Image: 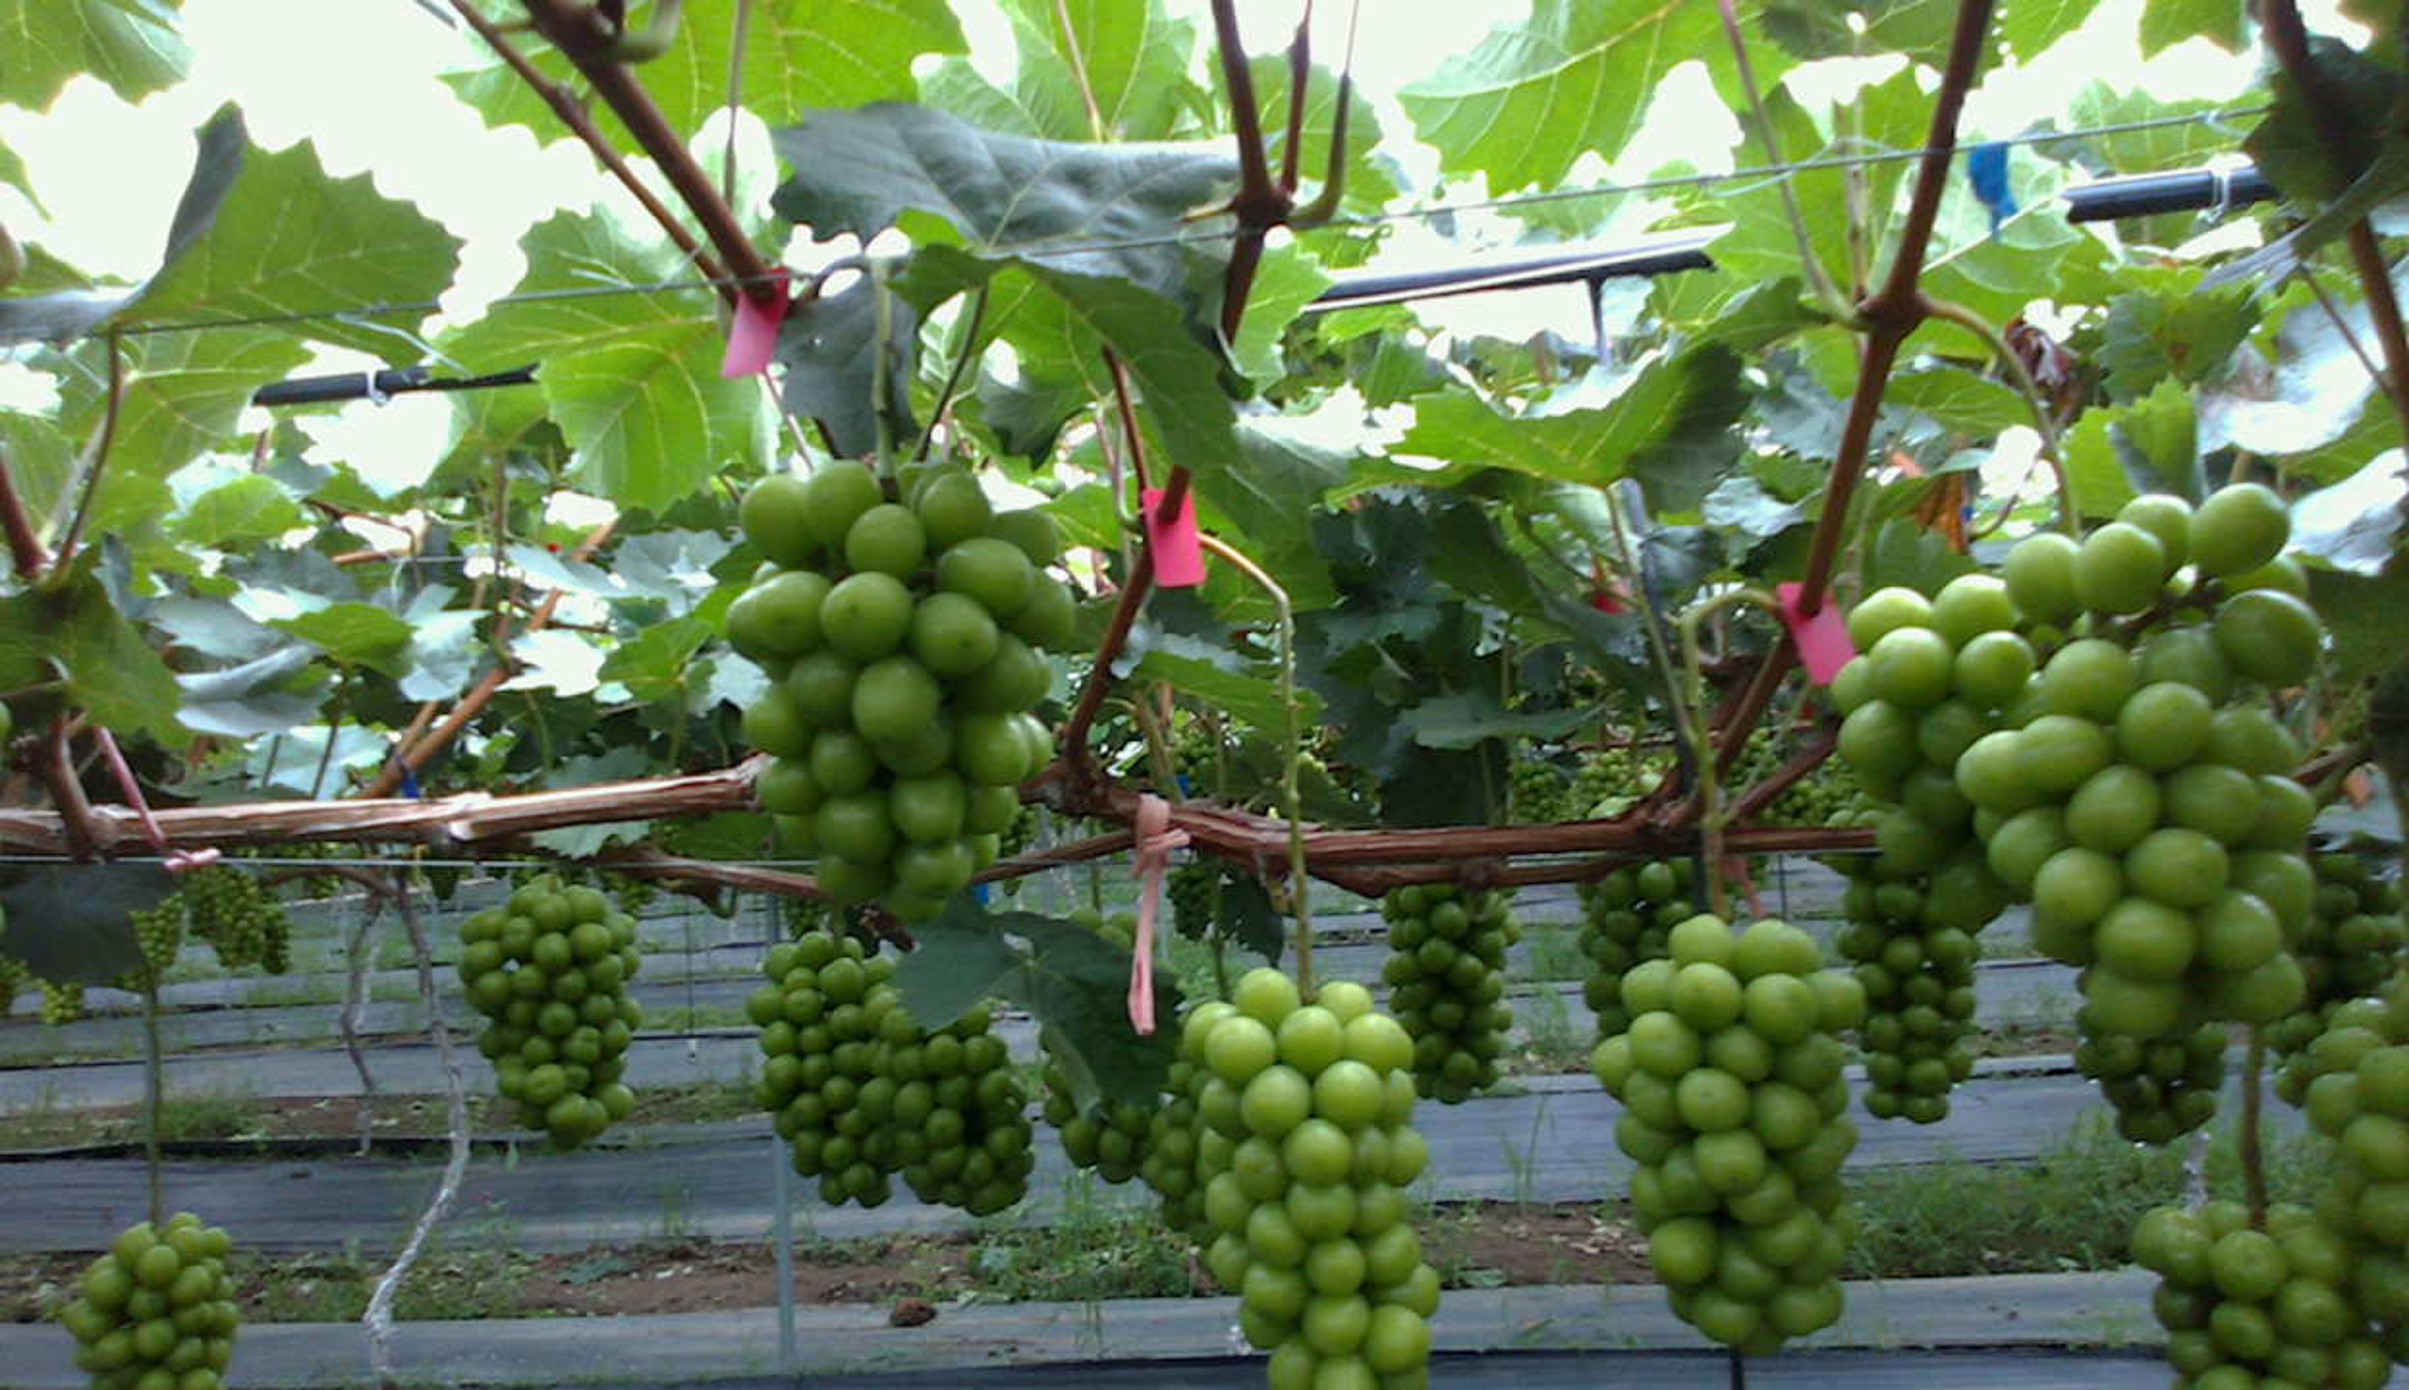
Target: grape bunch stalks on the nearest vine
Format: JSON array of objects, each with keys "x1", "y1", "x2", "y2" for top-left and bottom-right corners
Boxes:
[
  {"x1": 871, "y1": 259, "x2": 900, "y2": 504},
  {"x1": 1924, "y1": 301, "x2": 2077, "y2": 542},
  {"x1": 1197, "y1": 535, "x2": 1313, "y2": 1008},
  {"x1": 2241, "y1": 1023, "x2": 2266, "y2": 1230},
  {"x1": 1679, "y1": 589, "x2": 1784, "y2": 923},
  {"x1": 135, "y1": 956, "x2": 162, "y2": 1234}
]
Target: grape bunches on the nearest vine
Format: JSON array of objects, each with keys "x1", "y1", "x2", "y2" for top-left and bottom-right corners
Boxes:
[
  {"x1": 2303, "y1": 977, "x2": 2407, "y2": 1365},
  {"x1": 60, "y1": 1212, "x2": 239, "y2": 1388},
  {"x1": 2131, "y1": 1199, "x2": 2392, "y2": 1388},
  {"x1": 1183, "y1": 967, "x2": 1438, "y2": 1388},
  {"x1": 1830, "y1": 483, "x2": 2322, "y2": 1042},
  {"x1": 726, "y1": 458, "x2": 1075, "y2": 925},
  {"x1": 1591, "y1": 913, "x2": 1865, "y2": 1359}
]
